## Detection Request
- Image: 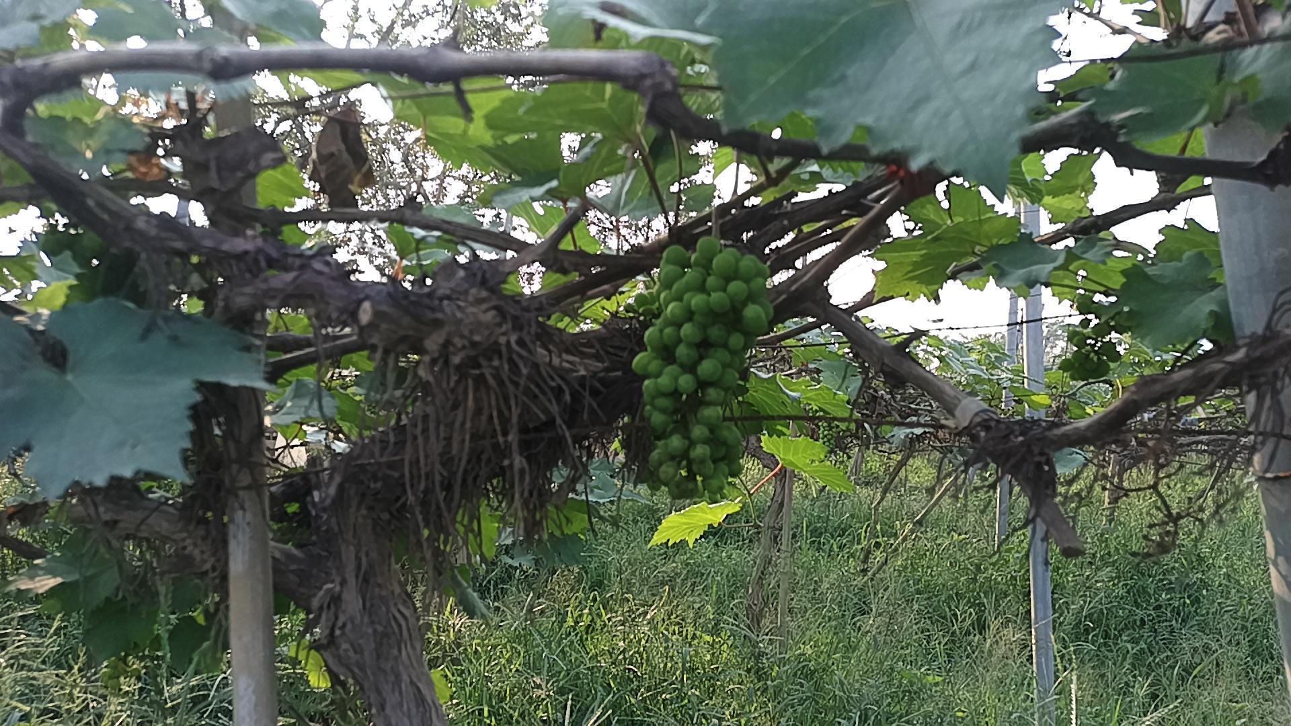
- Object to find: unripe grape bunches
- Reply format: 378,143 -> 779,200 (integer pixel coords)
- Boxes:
1056,294 -> 1140,383
802,403 -> 847,450
622,237 -> 774,504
